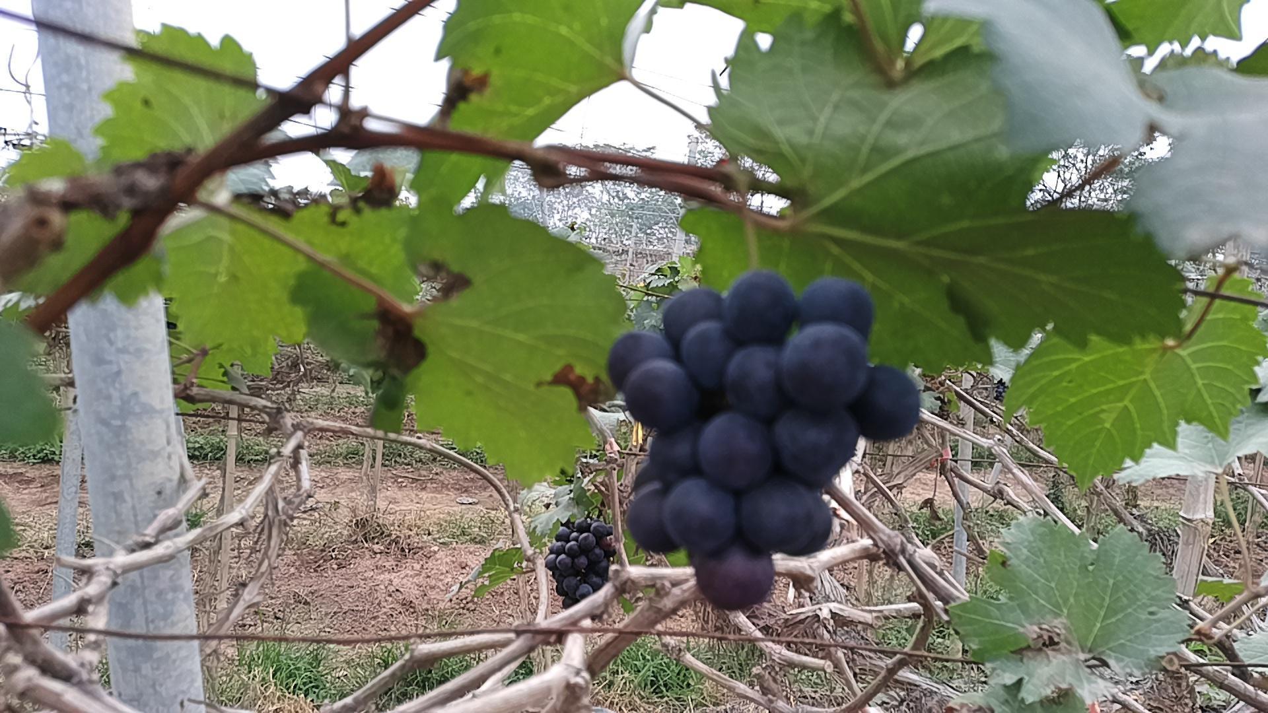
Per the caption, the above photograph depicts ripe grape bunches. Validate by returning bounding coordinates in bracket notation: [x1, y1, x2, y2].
[545, 518, 616, 607]
[610, 270, 919, 609]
